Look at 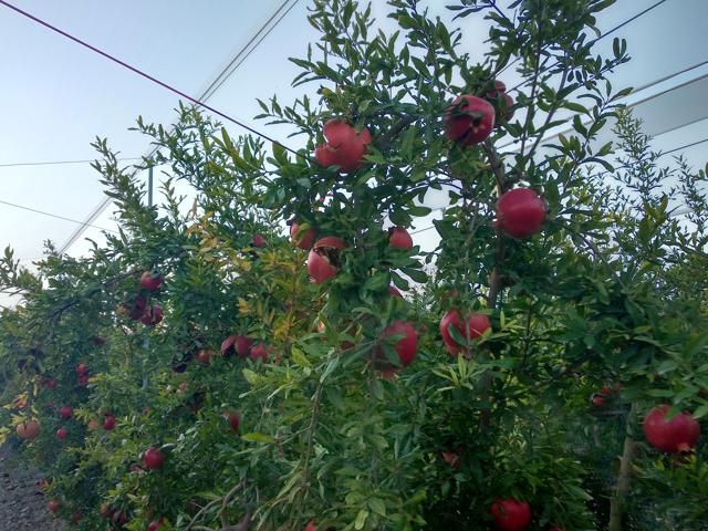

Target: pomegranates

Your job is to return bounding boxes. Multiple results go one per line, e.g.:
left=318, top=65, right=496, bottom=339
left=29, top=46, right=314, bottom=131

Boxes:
left=60, top=407, right=71, bottom=417
left=388, top=226, right=415, bottom=250
left=140, top=272, right=162, bottom=291
left=306, top=237, right=348, bottom=283
left=488, top=187, right=548, bottom=236
left=312, top=118, right=371, bottom=171
left=124, top=300, right=146, bottom=320
left=221, top=413, right=240, bottom=431
left=382, top=317, right=417, bottom=378
left=56, top=428, right=67, bottom=439
left=444, top=94, right=496, bottom=143
left=219, top=336, right=251, bottom=358
left=643, top=406, right=700, bottom=456
left=437, top=311, right=492, bottom=355
left=143, top=447, right=165, bottom=468
left=101, top=415, right=116, bottom=430
left=492, top=496, right=531, bottom=531
left=15, top=417, right=40, bottom=437
left=249, top=341, right=269, bottom=362
left=289, top=222, right=316, bottom=249
left=146, top=517, right=163, bottom=531
left=139, top=304, right=164, bottom=325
